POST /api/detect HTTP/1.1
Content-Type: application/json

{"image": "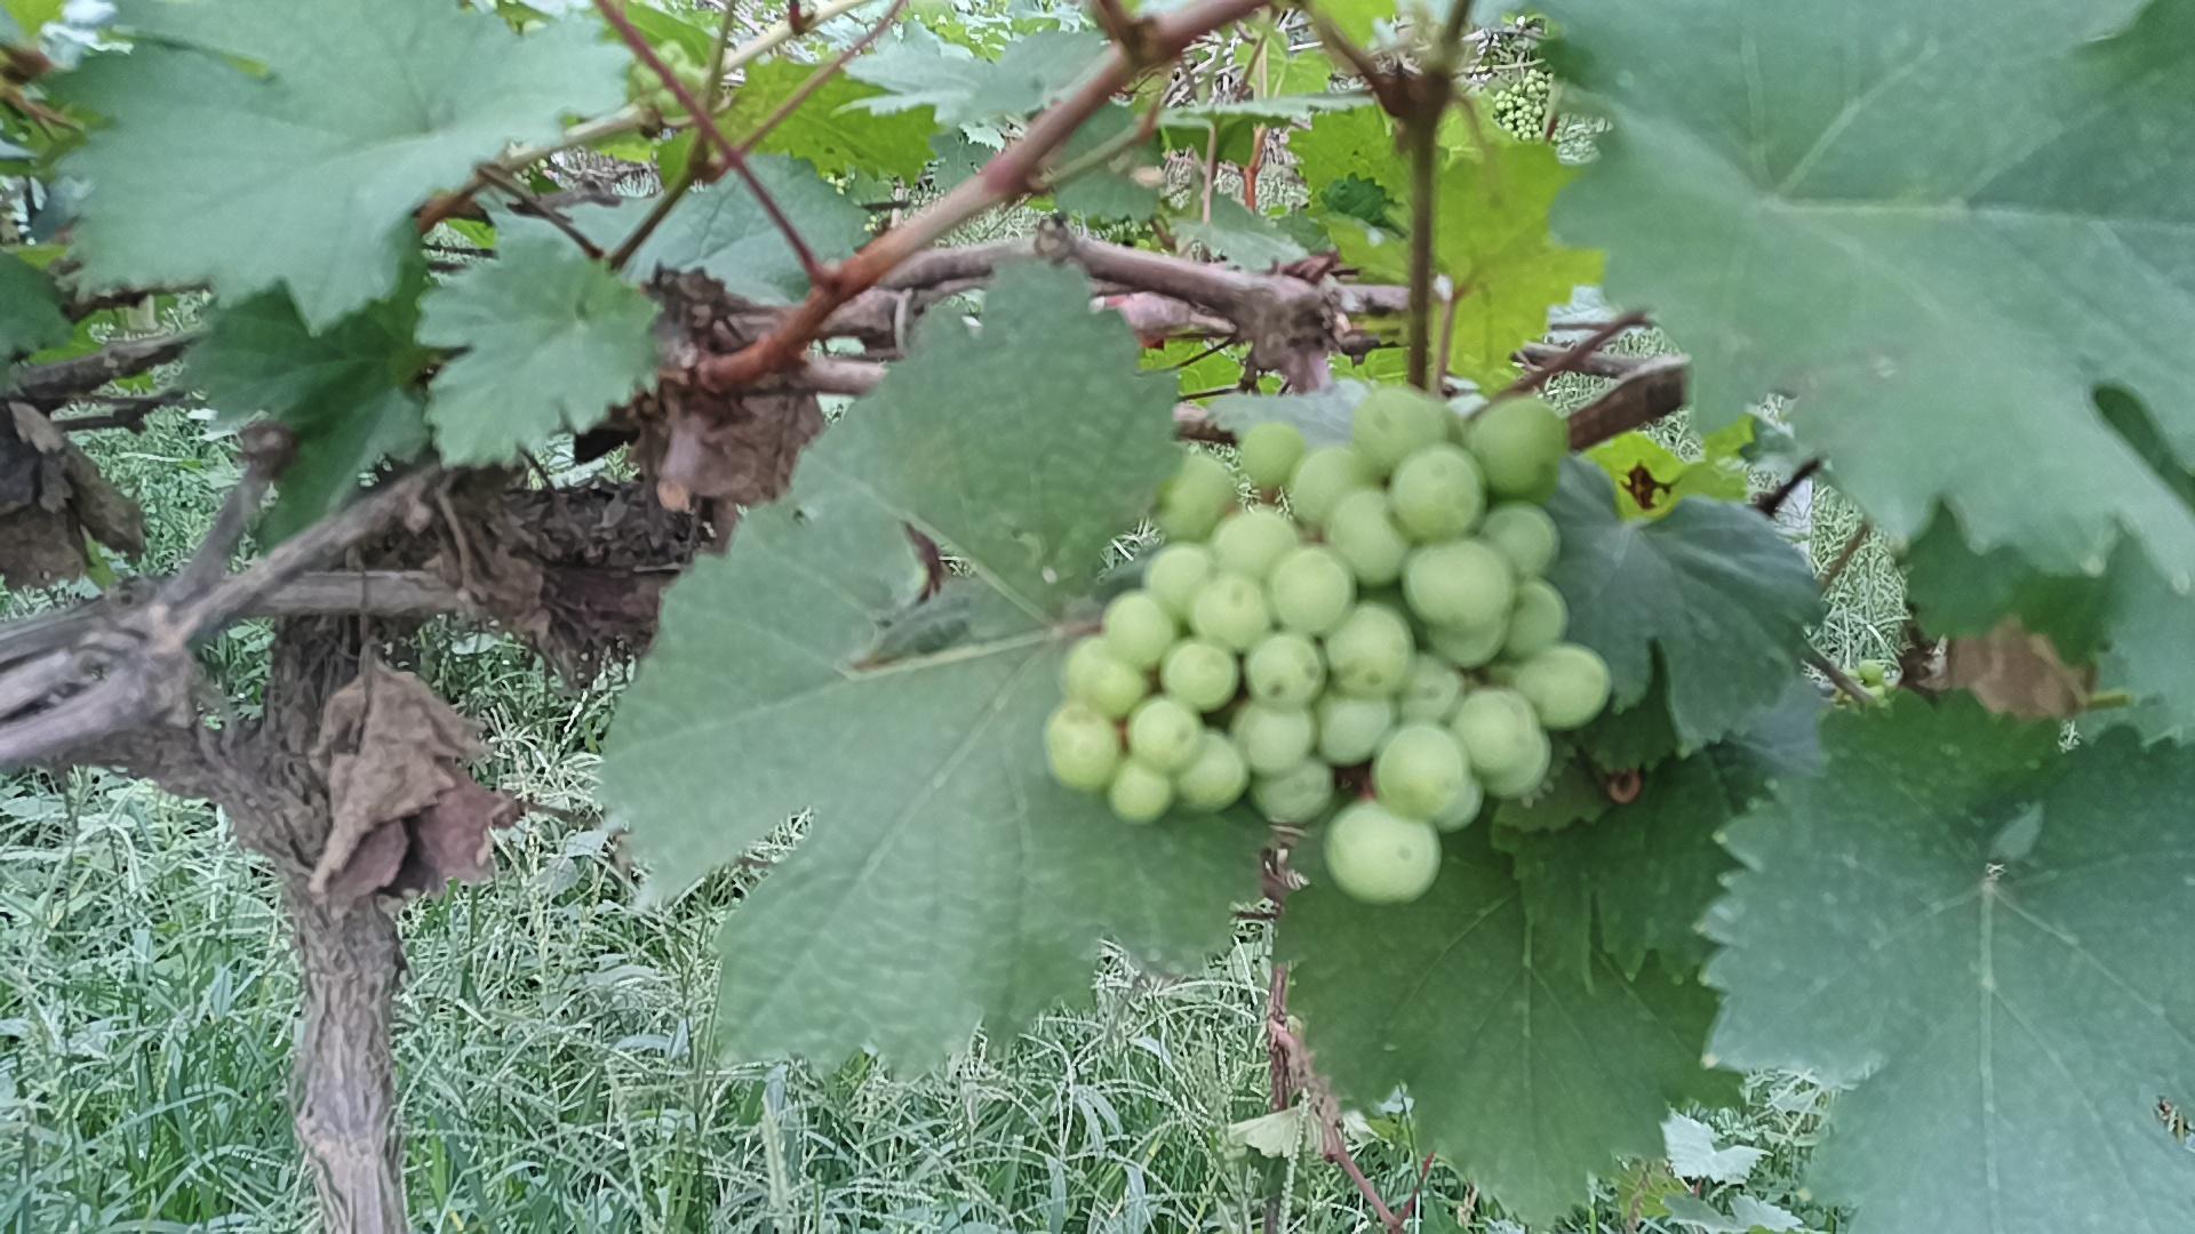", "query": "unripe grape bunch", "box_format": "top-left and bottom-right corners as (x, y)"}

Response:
top-left (1043, 386), bottom-right (1611, 903)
